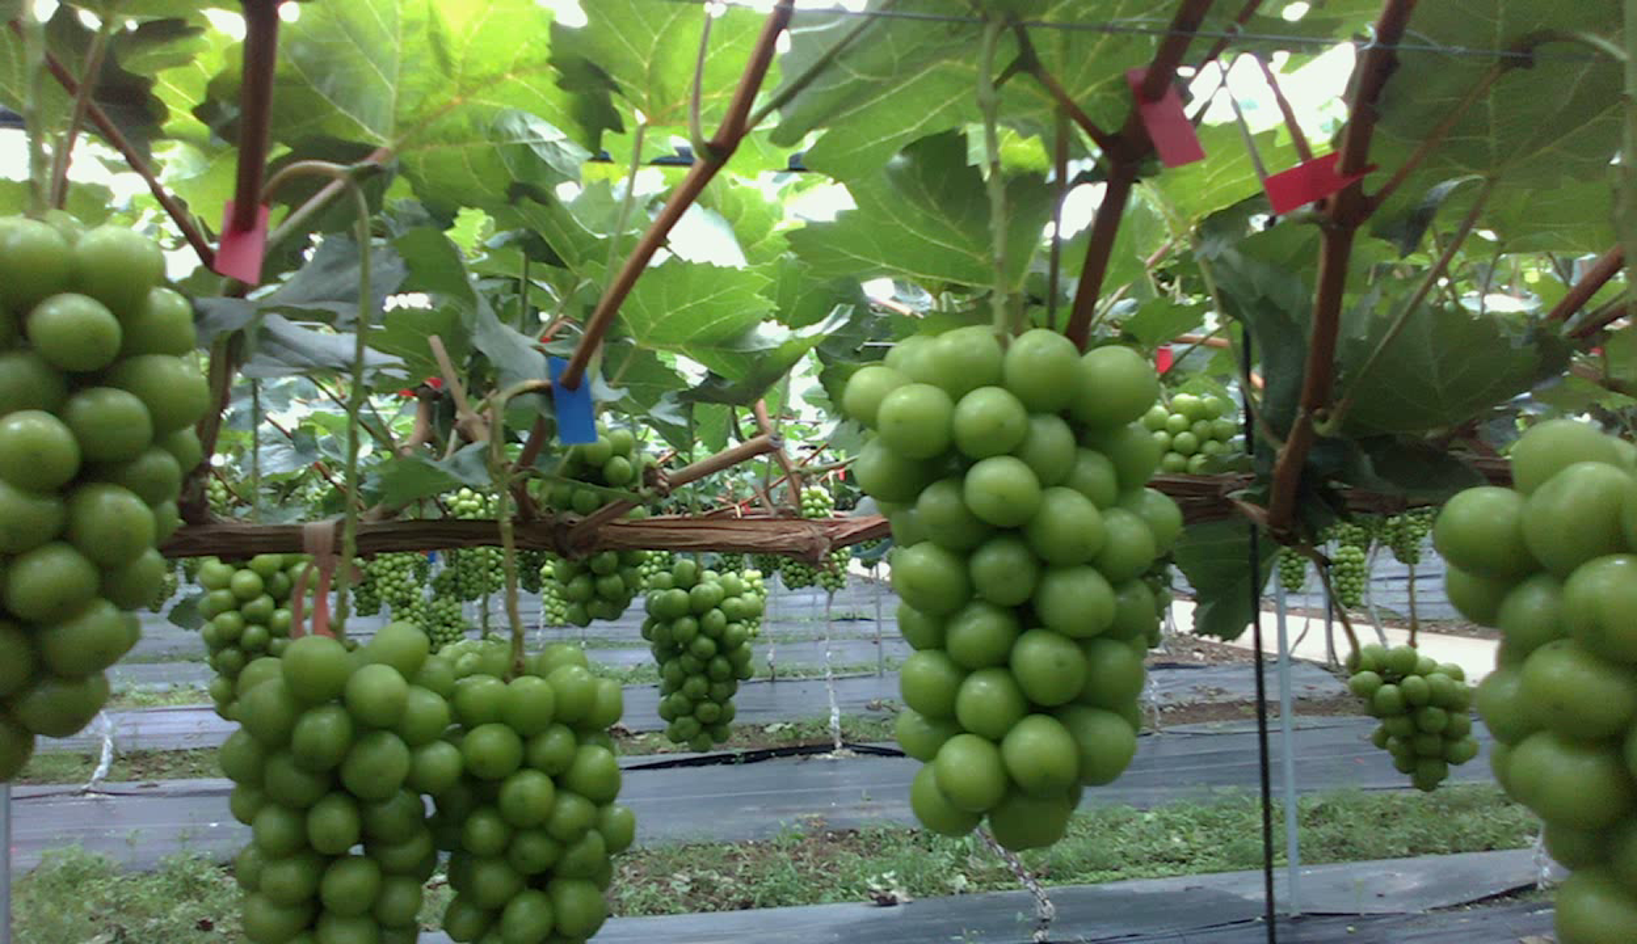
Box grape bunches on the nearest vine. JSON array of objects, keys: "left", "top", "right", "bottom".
[
  {"left": 429, "top": 640, "right": 635, "bottom": 941},
  {"left": 220, "top": 621, "right": 464, "bottom": 941},
  {"left": 1431, "top": 417, "right": 1636, "bottom": 943},
  {"left": 839, "top": 325, "right": 1181, "bottom": 851},
  {"left": 0, "top": 210, "right": 214, "bottom": 788}
]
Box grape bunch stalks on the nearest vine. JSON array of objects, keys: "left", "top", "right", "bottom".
[
  {"left": 264, "top": 161, "right": 384, "bottom": 649},
  {"left": 976, "top": 9, "right": 1014, "bottom": 351},
  {"left": 488, "top": 378, "right": 551, "bottom": 684},
  {"left": 16, "top": 3, "right": 49, "bottom": 220}
]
